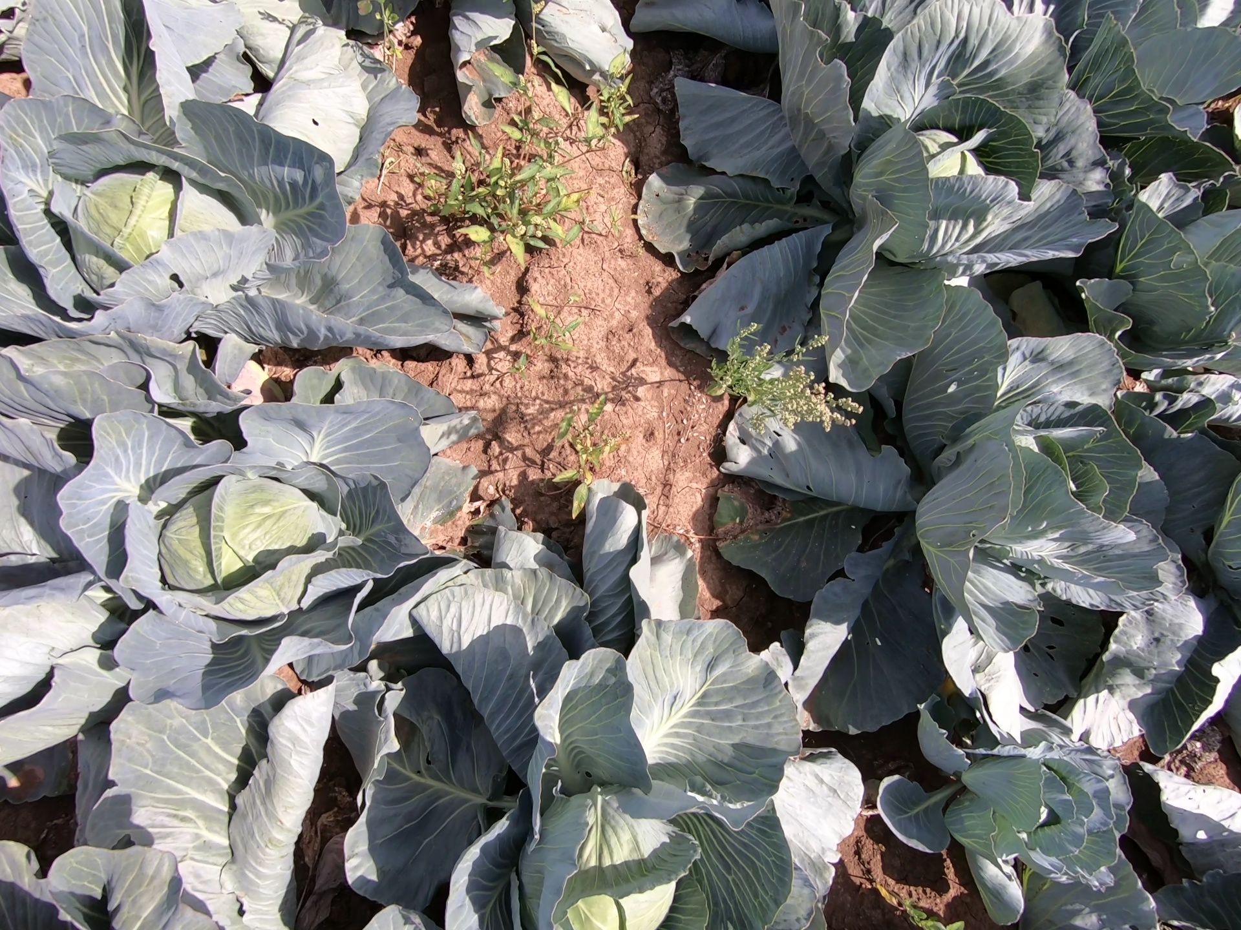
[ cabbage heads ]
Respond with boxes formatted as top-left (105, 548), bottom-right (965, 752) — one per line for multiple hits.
top-left (962, 417), bottom-right (1068, 510)
top-left (160, 475), bottom-right (330, 617)
top-left (867, 130), bottom-right (994, 260)
top-left (521, 792), bottom-right (675, 928)
top-left (67, 161), bottom-right (244, 298)
top-left (981, 754), bottom-right (1065, 829)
